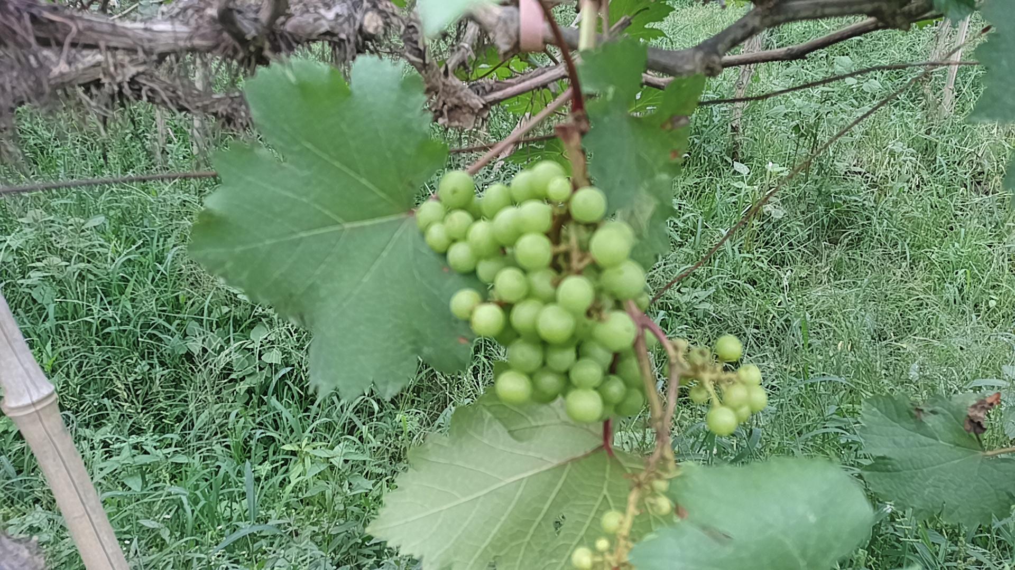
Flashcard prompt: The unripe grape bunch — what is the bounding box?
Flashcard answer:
[416,161,765,435]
